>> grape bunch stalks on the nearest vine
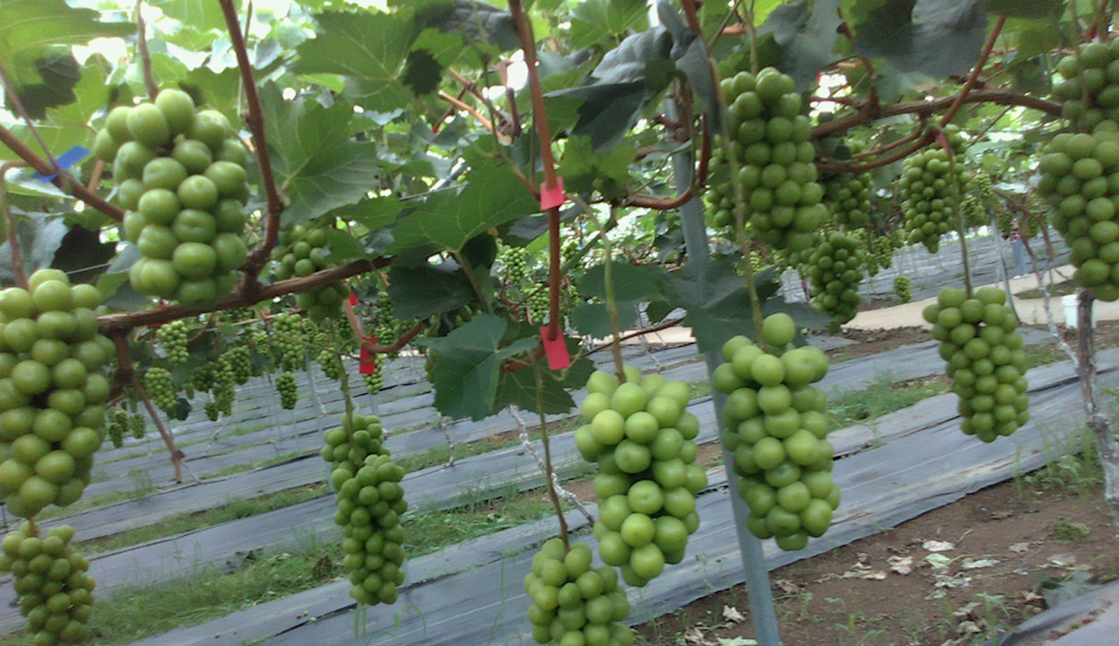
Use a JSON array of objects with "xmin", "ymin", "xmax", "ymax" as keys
[
  {"xmin": 570, "ymin": 196, "xmax": 626, "ymax": 383},
  {"xmin": 526, "ymin": 352, "xmax": 570, "ymax": 553},
  {"xmin": 925, "ymin": 124, "xmax": 974, "ymax": 298},
  {"xmin": 742, "ymin": 4, "xmax": 759, "ymax": 72},
  {"xmin": 1, "ymin": 159, "xmax": 28, "ymax": 289},
  {"xmin": 1071, "ymin": 0, "xmax": 1089, "ymax": 131},
  {"xmin": 1091, "ymin": 0, "xmax": 1106, "ymax": 38},
  {"xmin": 709, "ymin": 61, "xmax": 767, "ymax": 349},
  {"xmin": 134, "ymin": 0, "xmax": 157, "ymax": 100}
]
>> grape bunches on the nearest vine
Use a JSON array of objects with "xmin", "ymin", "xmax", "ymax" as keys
[
  {"xmin": 1038, "ymin": 123, "xmax": 1117, "ymax": 302},
  {"xmin": 0, "ymin": 267, "xmax": 115, "ymax": 515},
  {"xmin": 525, "ymin": 538, "xmax": 634, "ymax": 644},
  {"xmin": 577, "ymin": 366, "xmax": 705, "ymax": 588},
  {"xmin": 712, "ymin": 311, "xmax": 838, "ymax": 551},
  {"xmin": 93, "ymin": 89, "xmax": 250, "ymax": 311},
  {"xmin": 1056, "ymin": 38, "xmax": 1118, "ymax": 132},
  {"xmin": 723, "ymin": 68, "xmax": 826, "ymax": 253},
  {"xmin": 924, "ymin": 285, "xmax": 1028, "ymax": 442}
]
